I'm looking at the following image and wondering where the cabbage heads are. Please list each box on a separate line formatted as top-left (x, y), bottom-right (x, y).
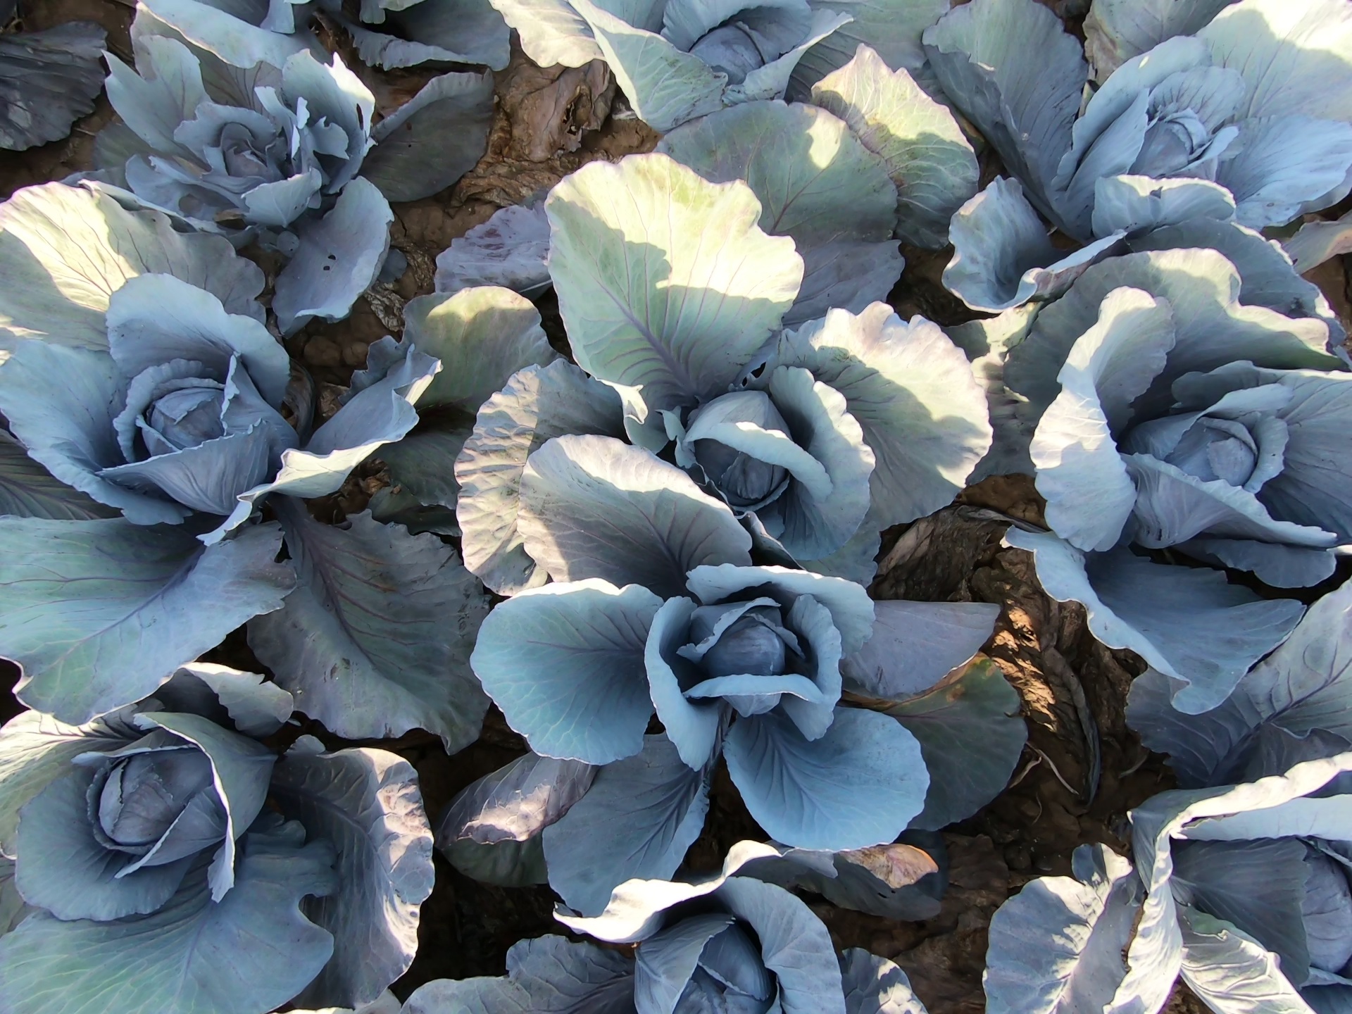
top-left (1119, 111), bottom-right (1214, 201)
top-left (1143, 411), bottom-right (1261, 525)
top-left (689, 396), bottom-right (789, 508)
top-left (144, 392), bottom-right (271, 476)
top-left (96, 722), bottom-right (258, 853)
top-left (222, 150), bottom-right (287, 204)
top-left (1199, 831), bottom-right (1351, 984)
top-left (704, 609), bottom-right (781, 707)
top-left (680, 23), bottom-right (780, 115)
top-left (639, 915), bottom-right (774, 1013)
